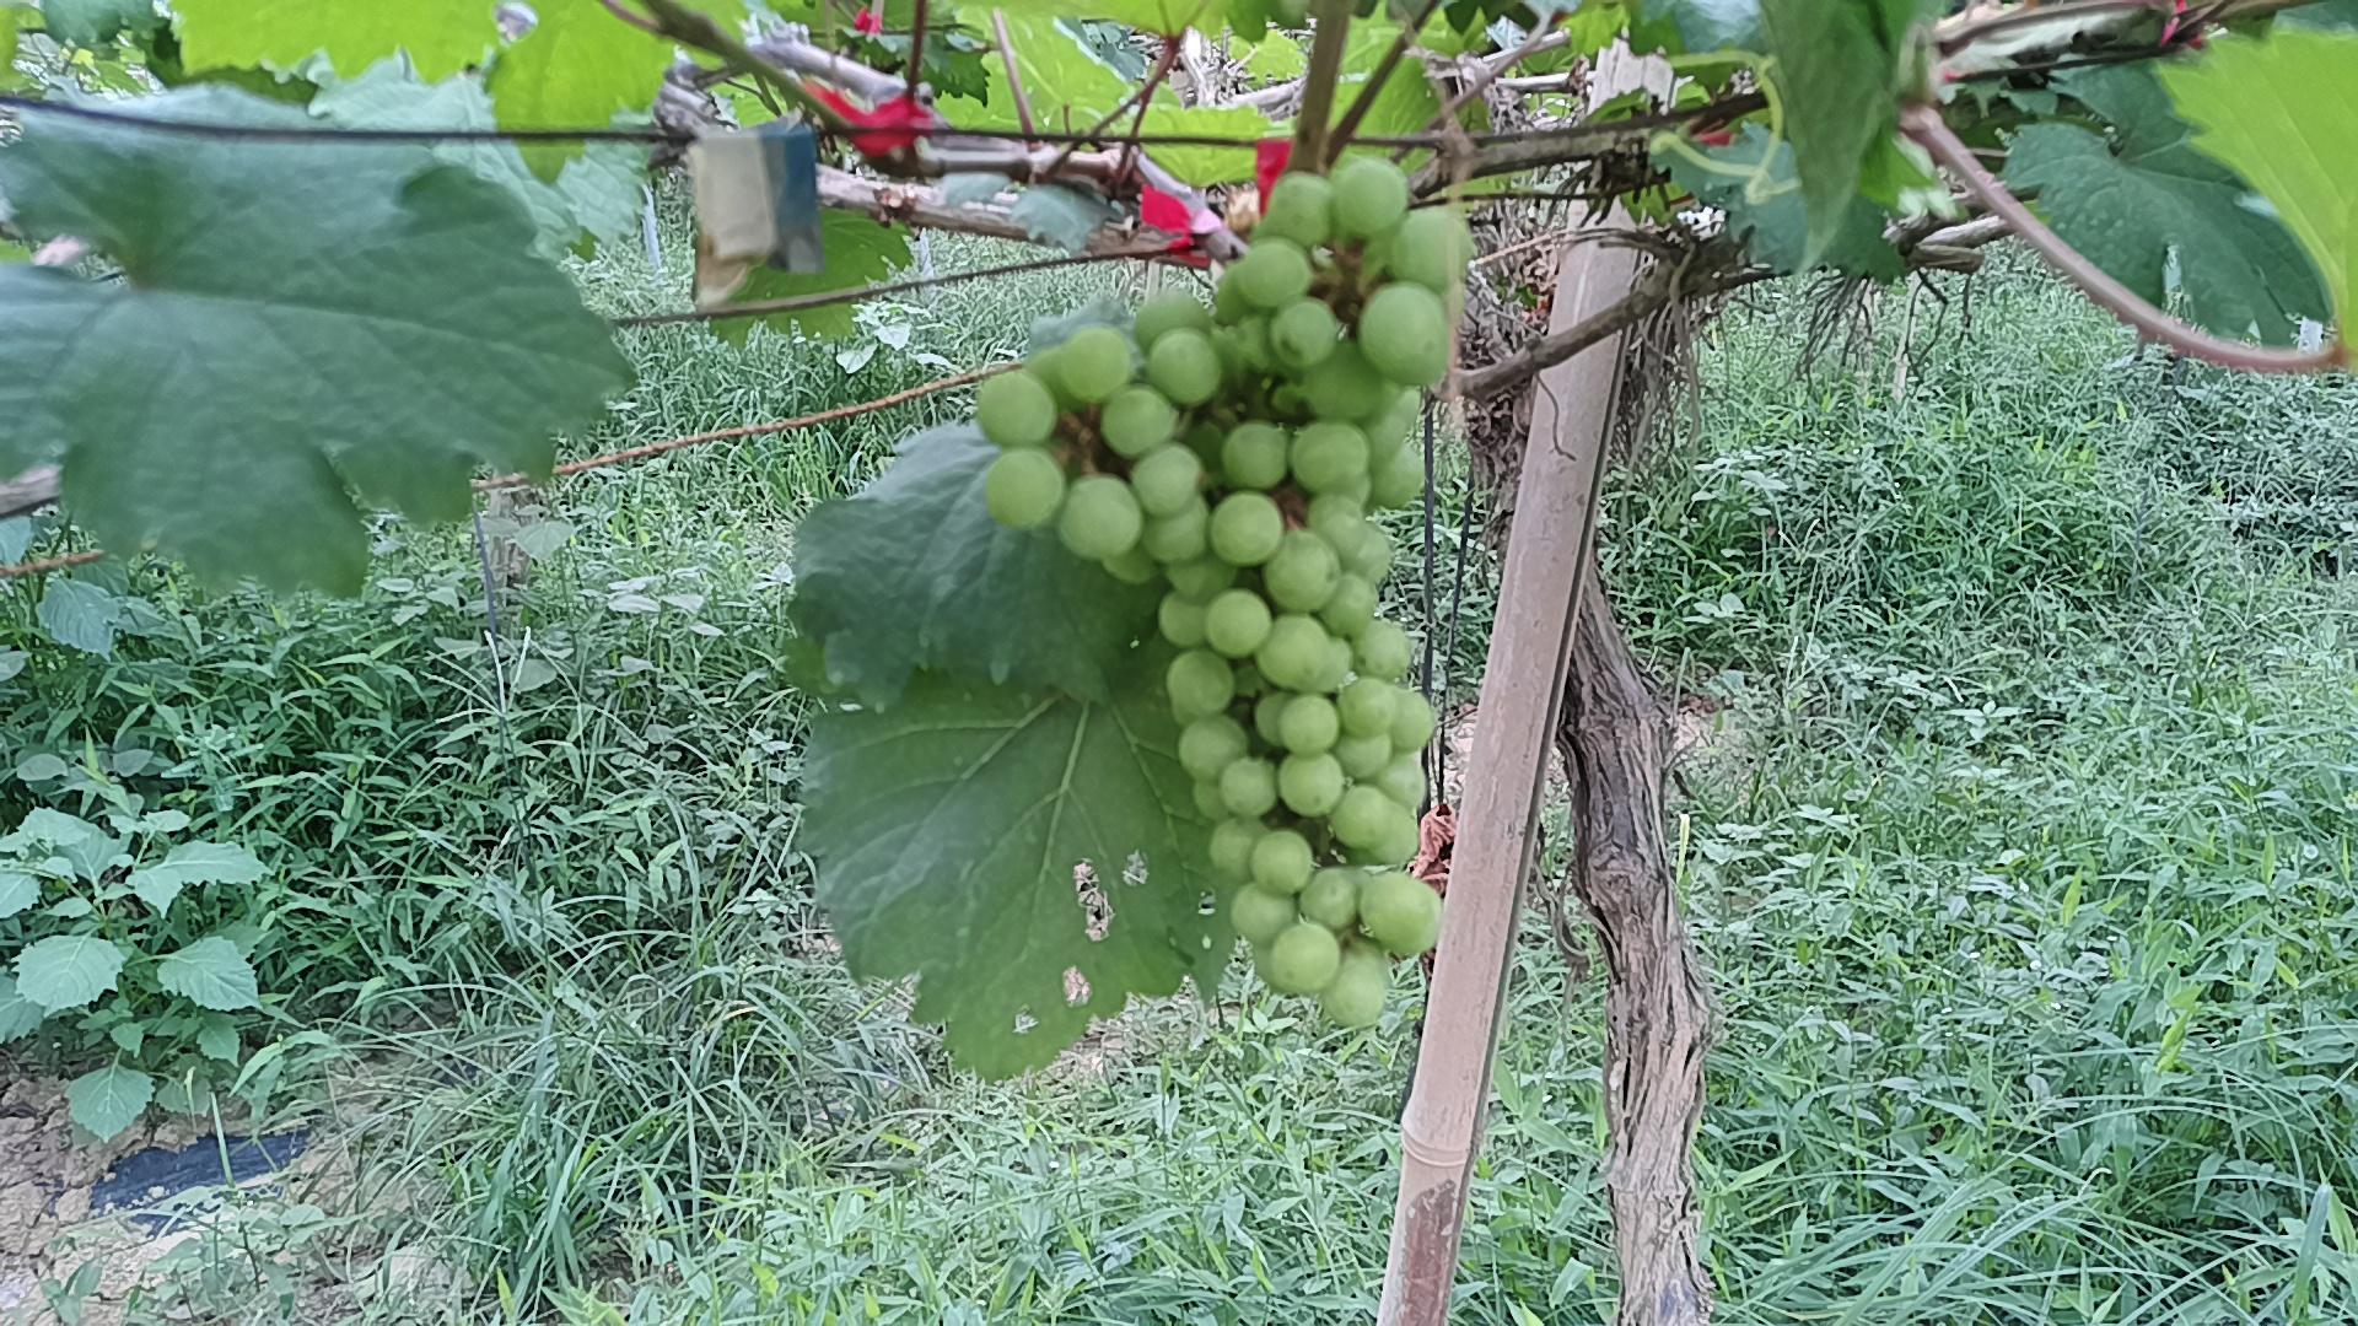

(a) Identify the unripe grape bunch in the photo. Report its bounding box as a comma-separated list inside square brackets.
[974, 158, 1471, 1029]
